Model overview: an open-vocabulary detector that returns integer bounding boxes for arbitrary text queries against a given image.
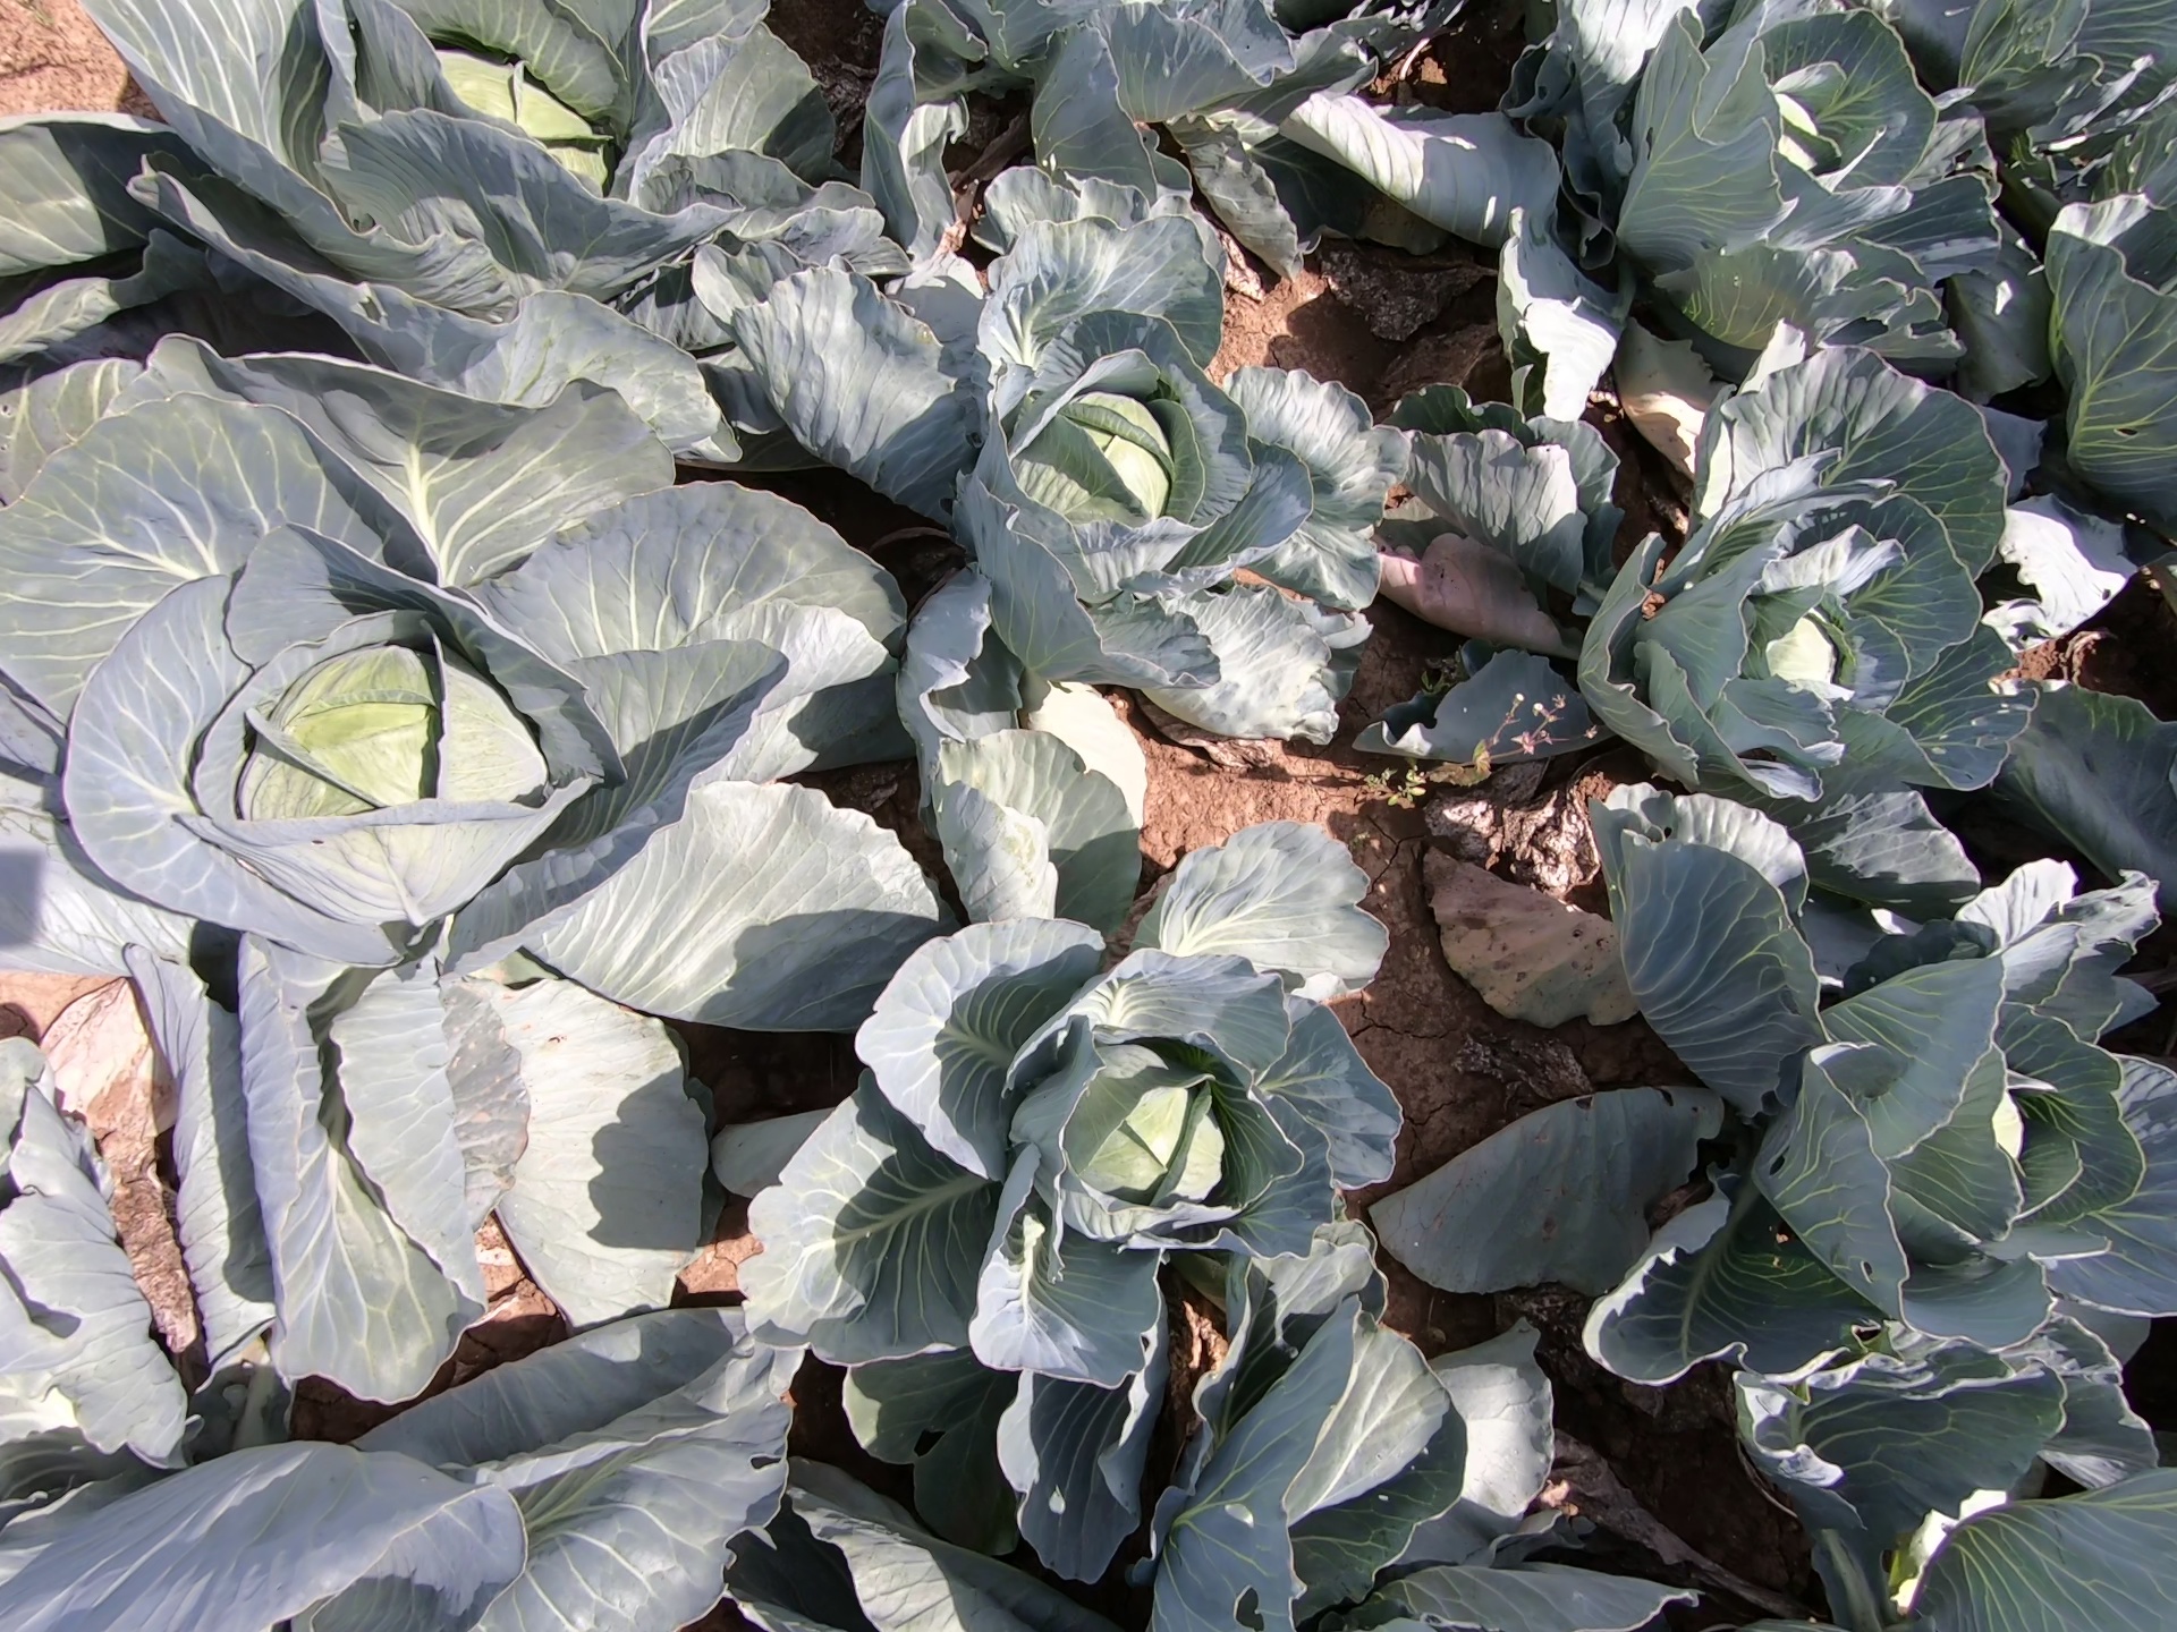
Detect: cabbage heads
[1032,1046,1223,1244]
[988,385,1178,588]
[1850,1062,2027,1231]
[238,638,552,930]
[1693,86,1818,218]
[1731,592,1844,720]
[371,44,607,206]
